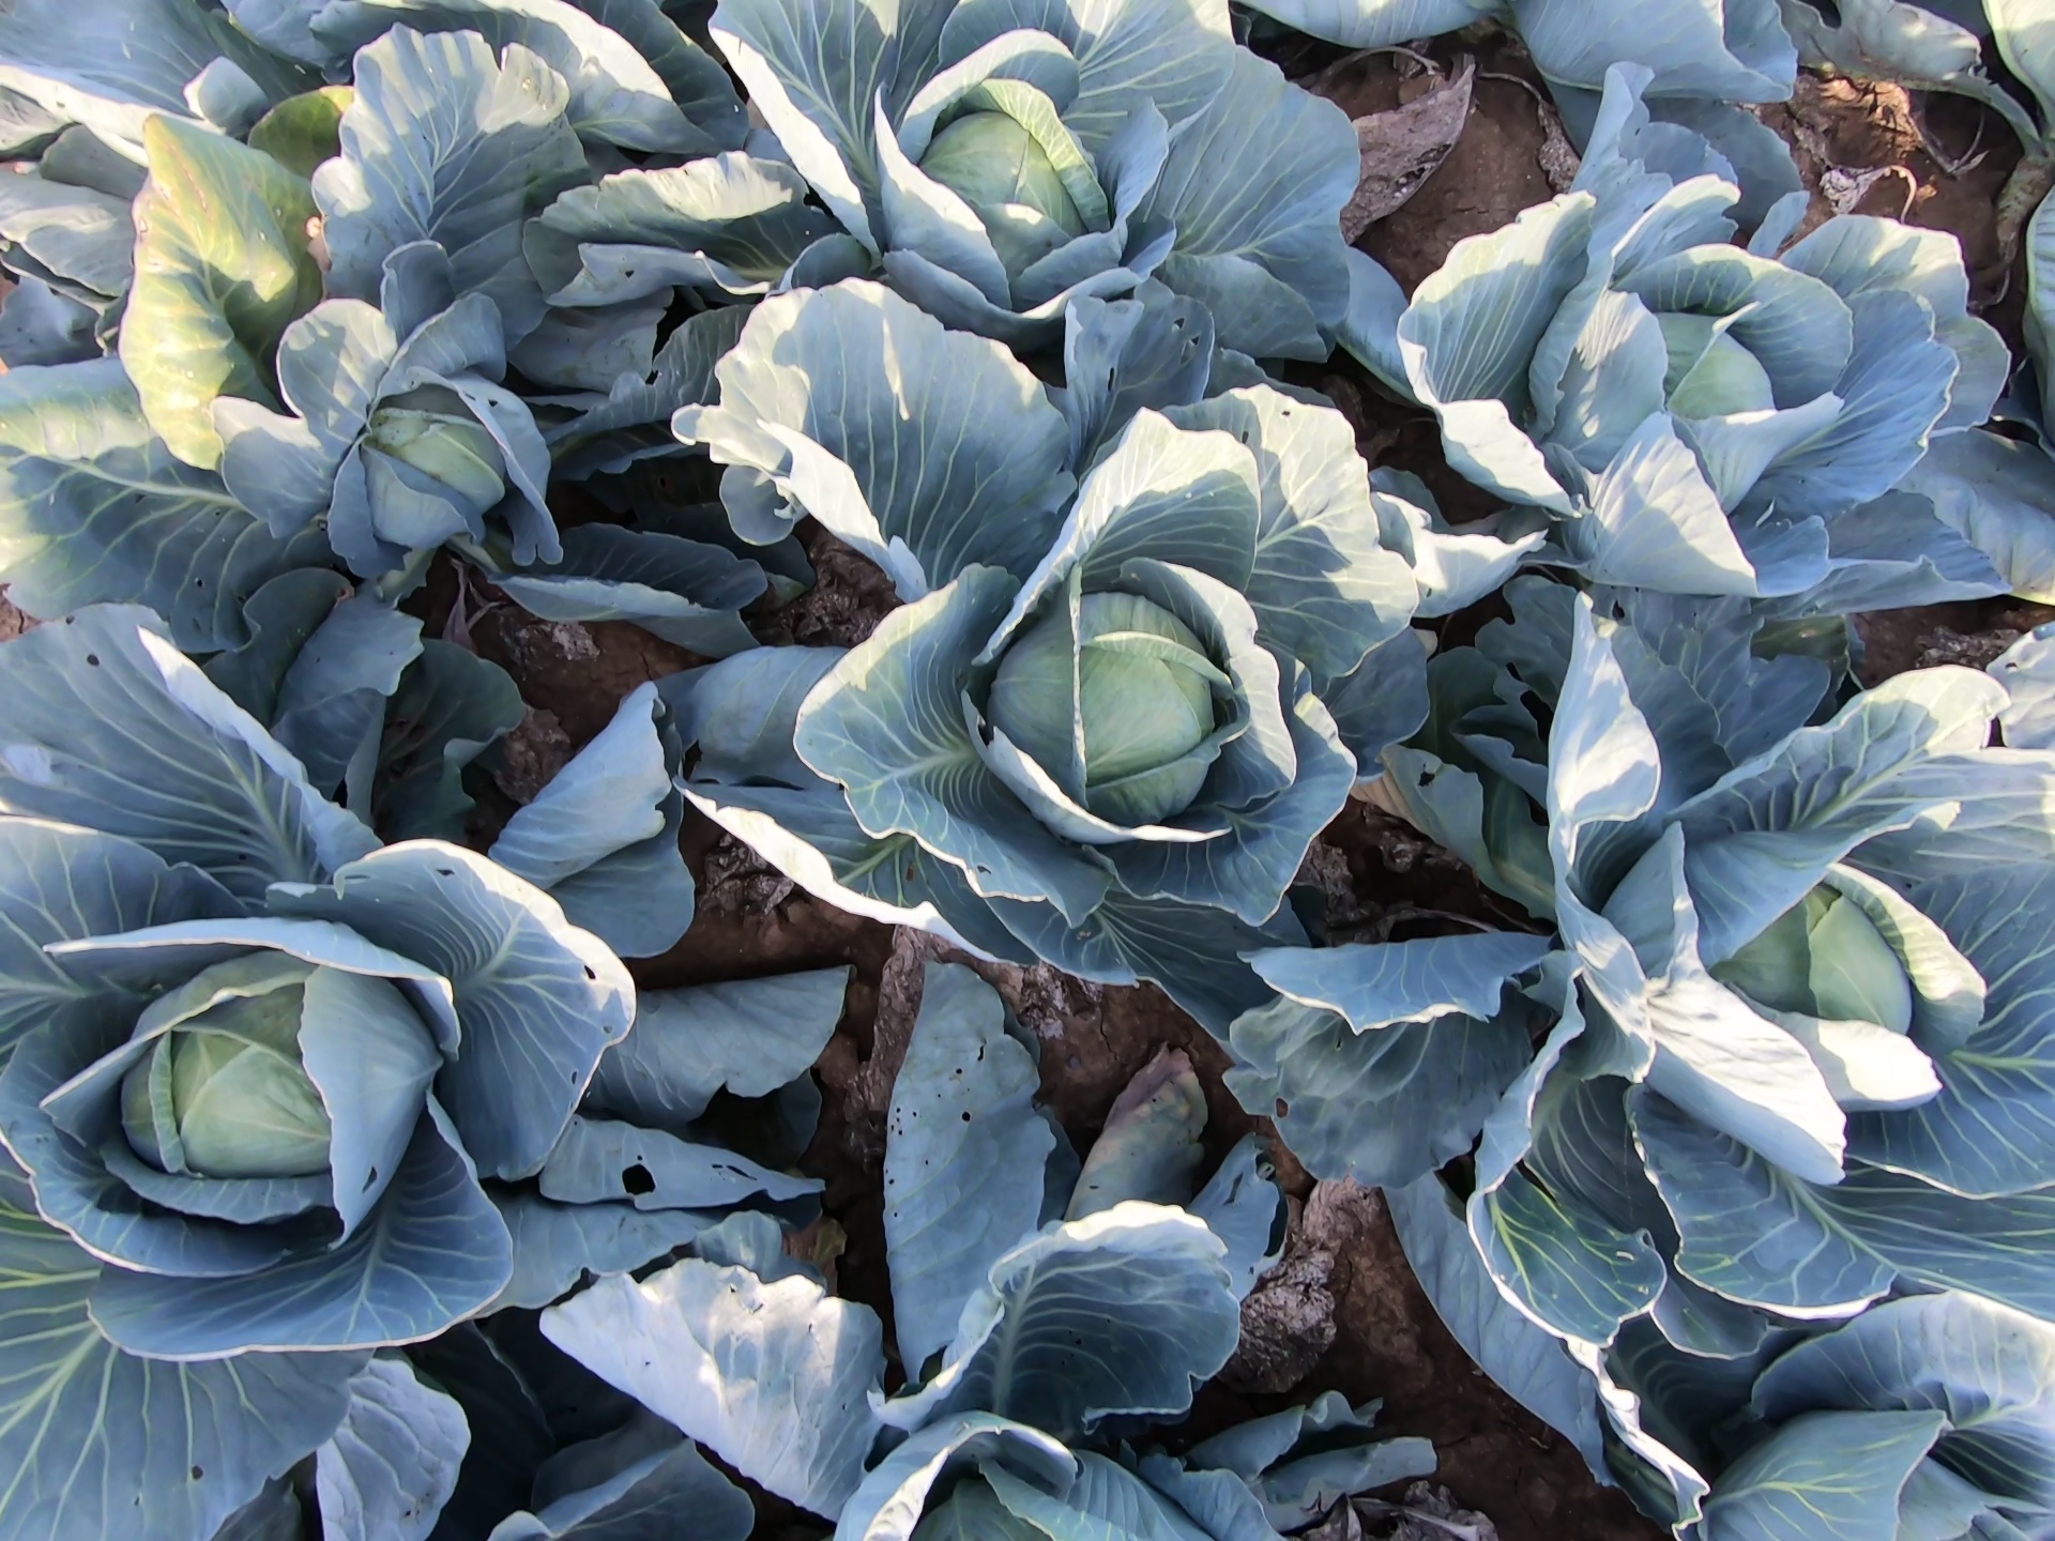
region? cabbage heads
[1574,311,1775,507]
[1741,1434,1991,1539]
[342,373,511,545]
[910,110,1103,311]
[1673,848,1915,1092]
[116,958,426,1202]
[985,592,1218,828]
